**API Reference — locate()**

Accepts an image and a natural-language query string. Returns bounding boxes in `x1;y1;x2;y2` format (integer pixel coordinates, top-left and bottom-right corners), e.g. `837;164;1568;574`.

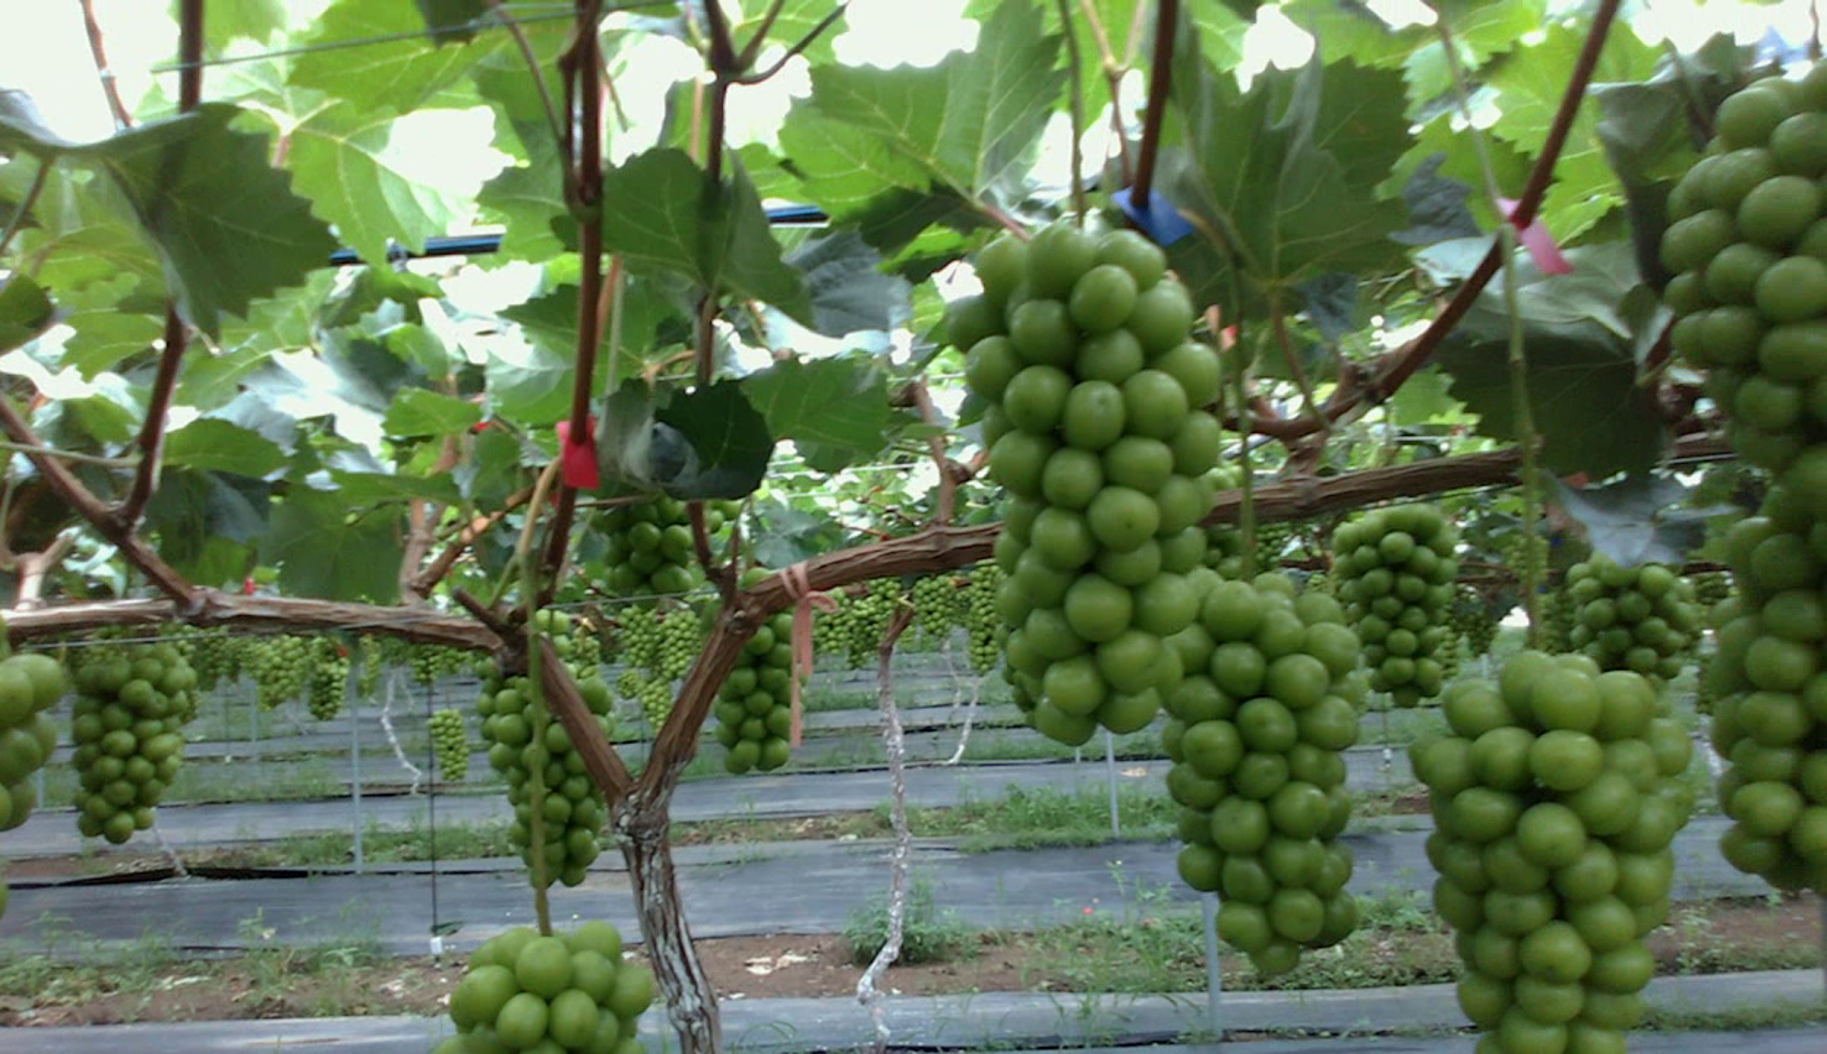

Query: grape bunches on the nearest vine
1408;649;1698;1053
1662;60;1826;533
1707;517;1826;897
430;922;653;1053
943;221;1221;748
1159;568;1360;975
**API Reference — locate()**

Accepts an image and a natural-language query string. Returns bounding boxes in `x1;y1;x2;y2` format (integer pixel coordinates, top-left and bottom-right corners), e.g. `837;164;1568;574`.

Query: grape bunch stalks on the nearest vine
1499;223;1549;651
518;455;561;937
1054;1;1085;228
1178;208;1255;584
